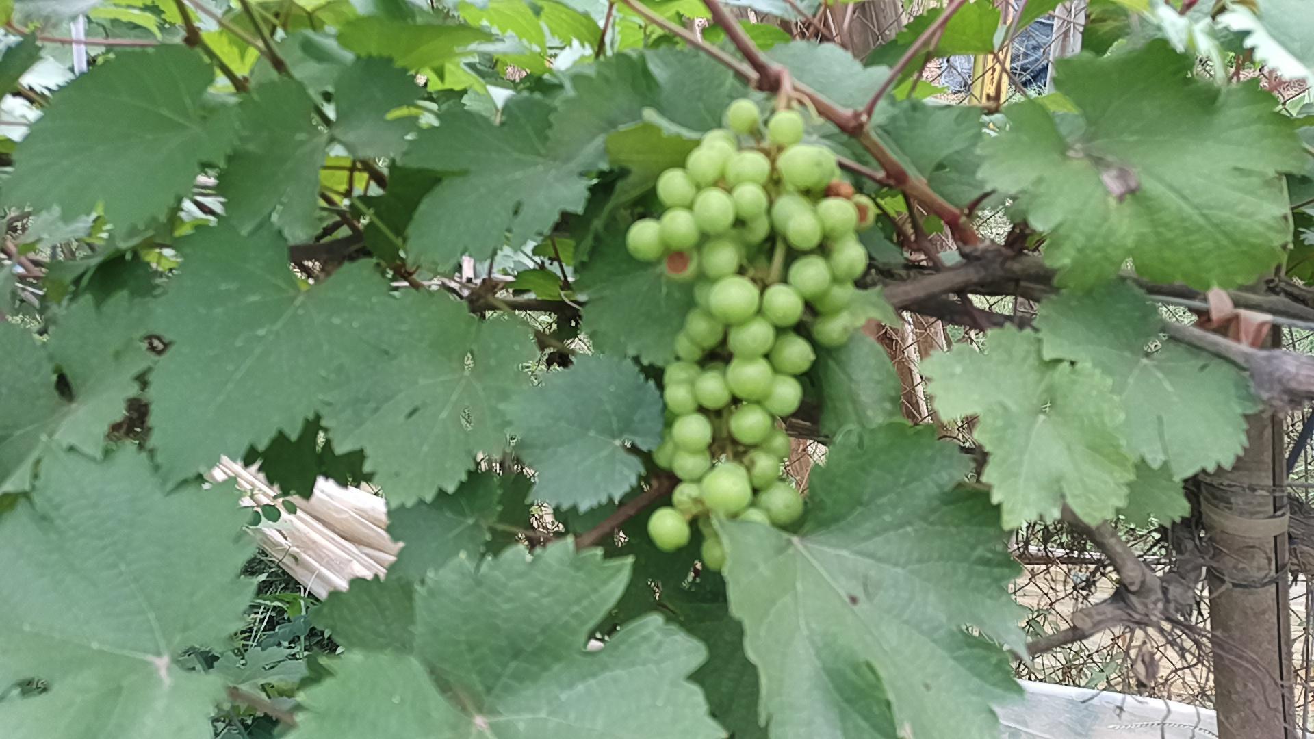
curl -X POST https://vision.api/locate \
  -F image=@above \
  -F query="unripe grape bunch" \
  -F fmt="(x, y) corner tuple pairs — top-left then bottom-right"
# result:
(627, 99), (874, 570)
